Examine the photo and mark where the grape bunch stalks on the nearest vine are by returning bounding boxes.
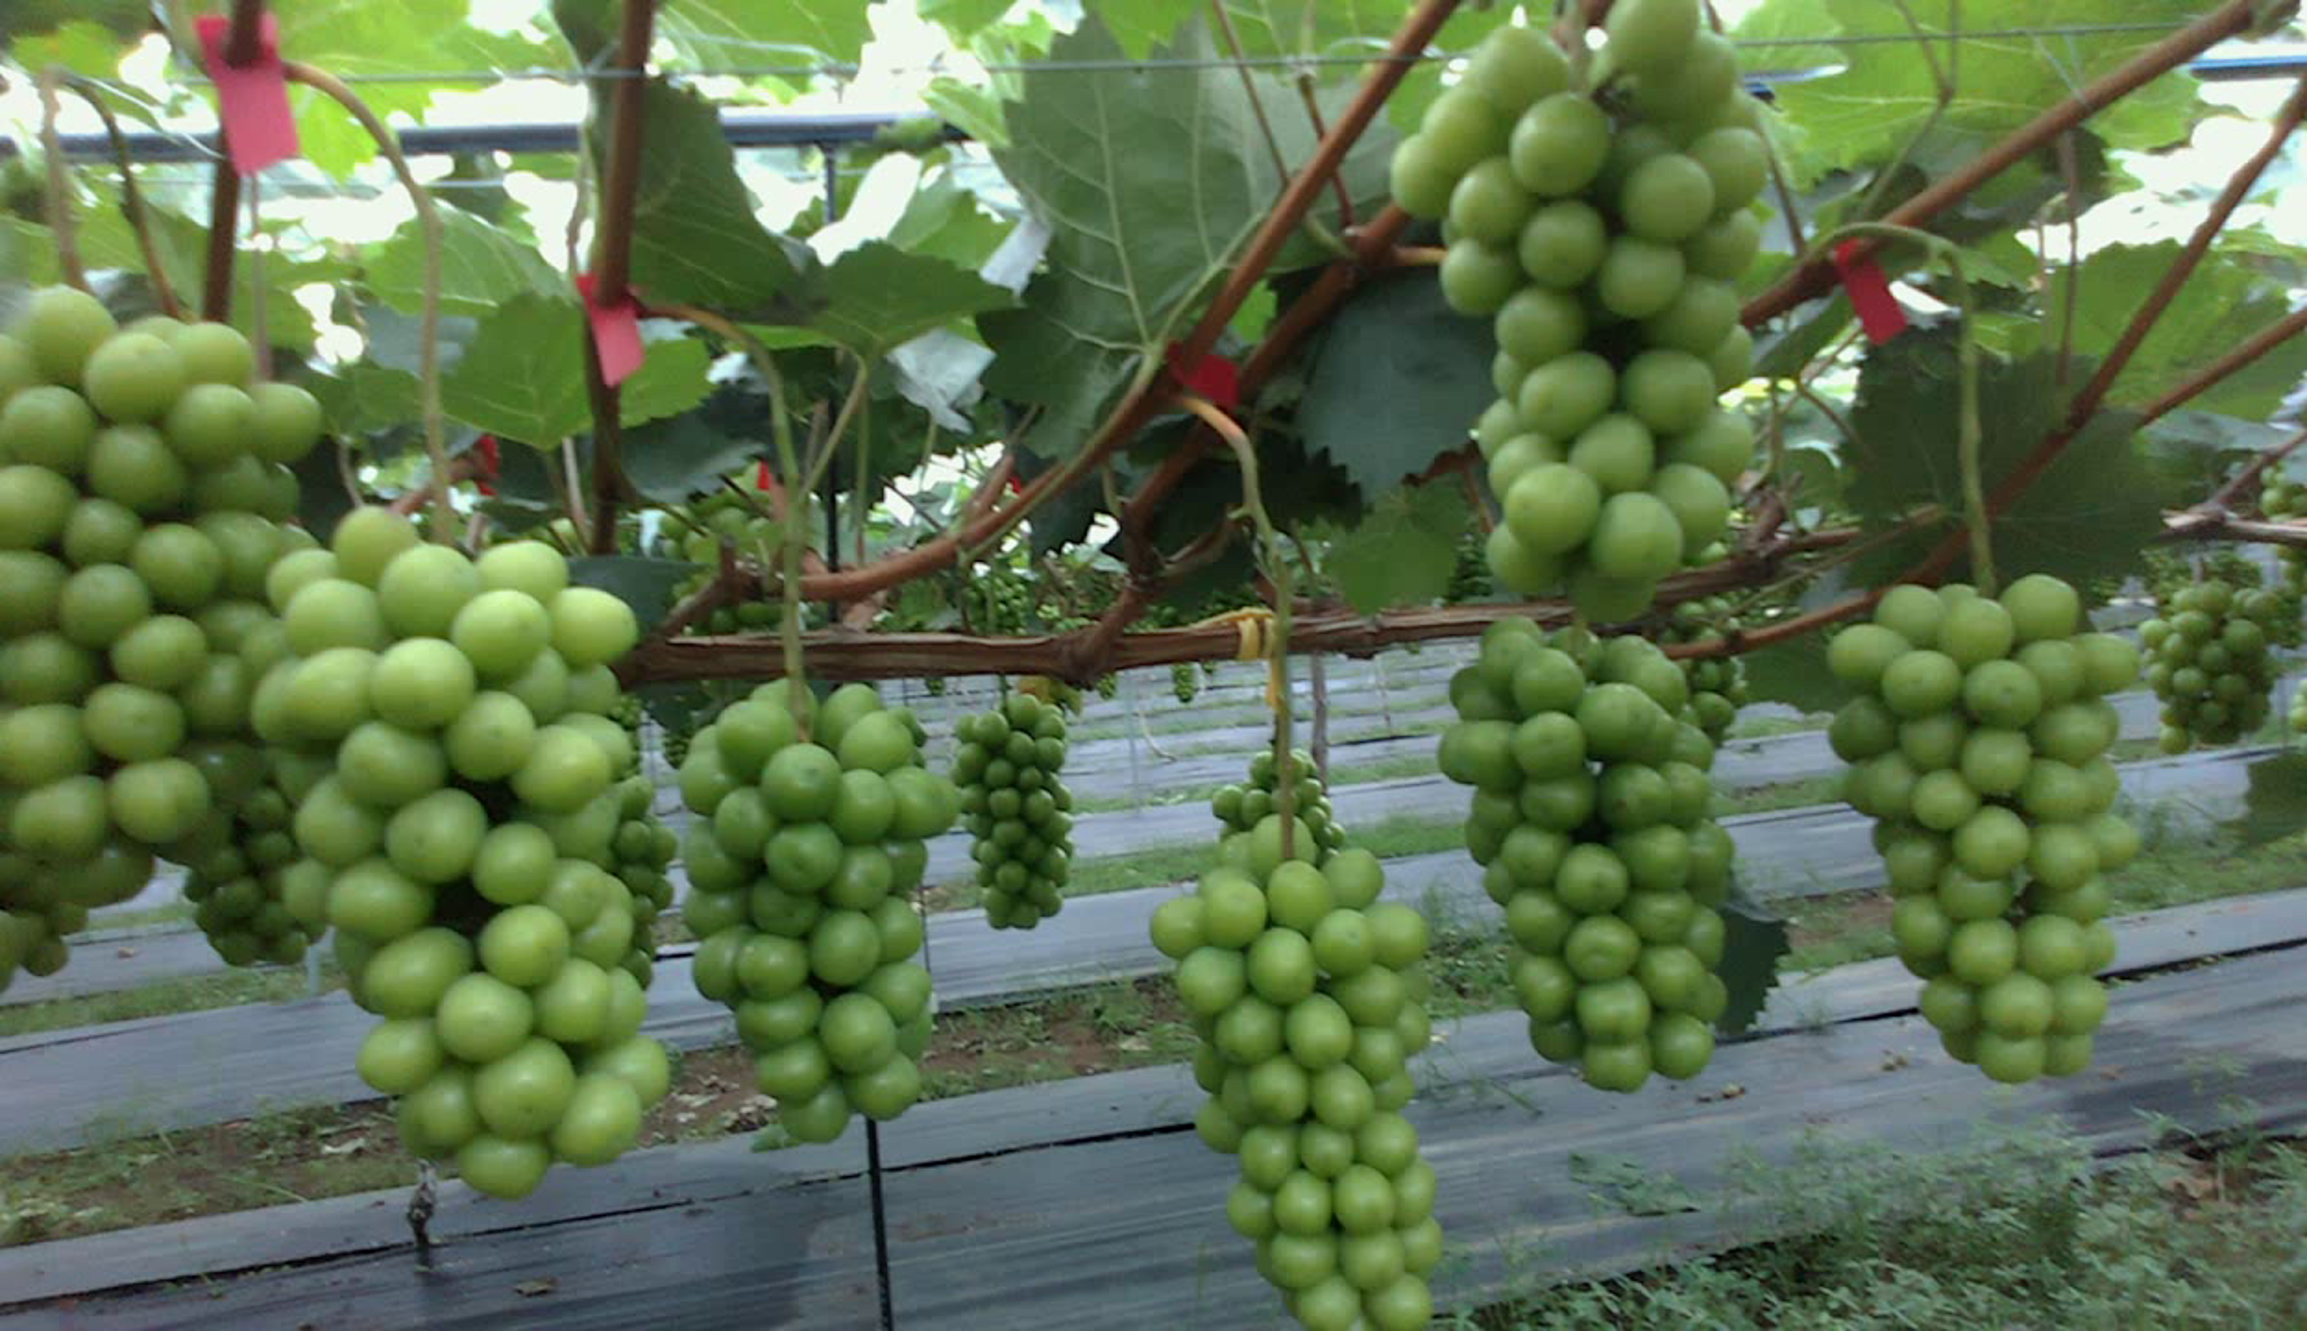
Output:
[275,59,451,545]
[1168,392,1294,858]
[1804,222,1996,595]
[640,301,812,743]
[20,57,92,294]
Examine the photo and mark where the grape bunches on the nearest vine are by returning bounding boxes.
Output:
[1828,575,2139,1080]
[240,503,667,1200]
[1438,616,1734,1093]
[1388,2,1771,621]
[682,678,956,1142]
[1150,813,1444,1327]
[2,281,320,959]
